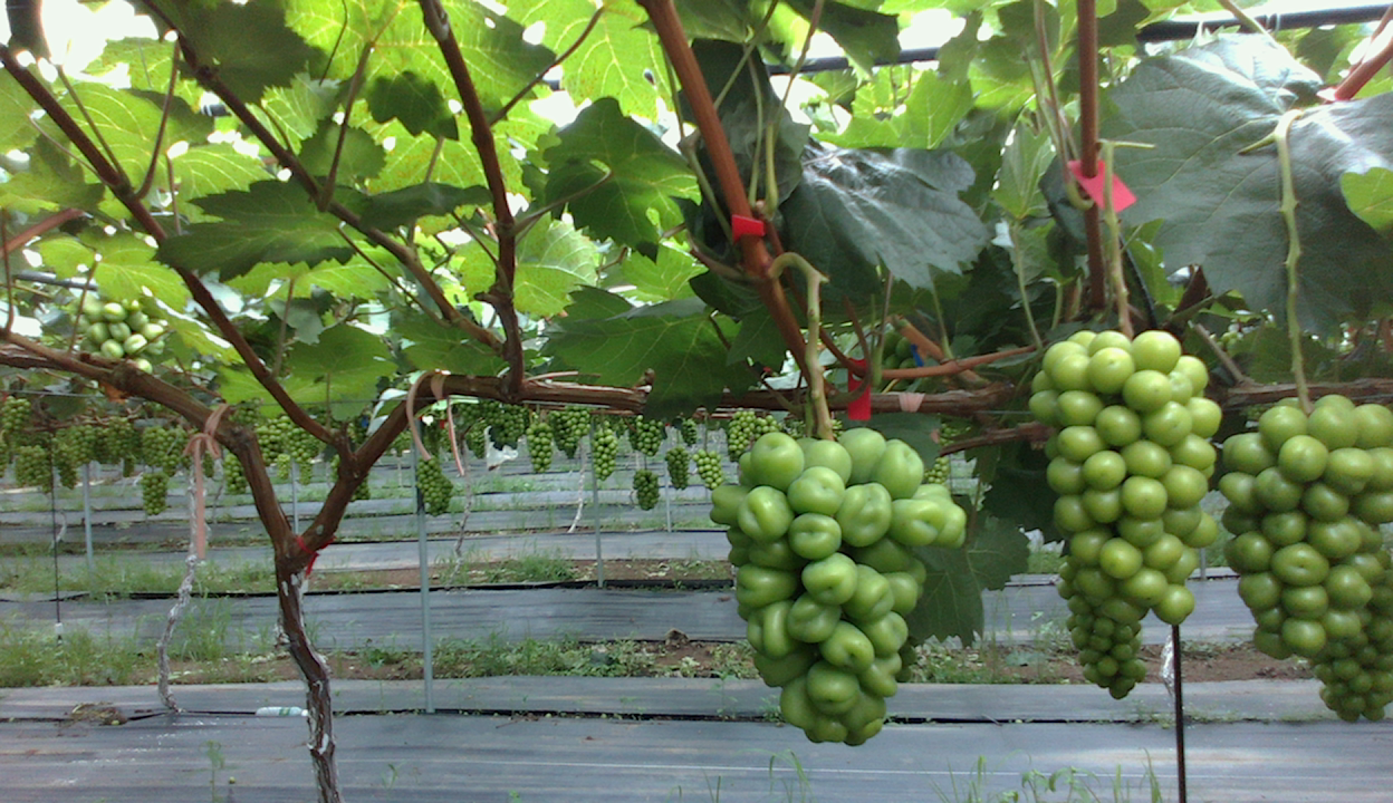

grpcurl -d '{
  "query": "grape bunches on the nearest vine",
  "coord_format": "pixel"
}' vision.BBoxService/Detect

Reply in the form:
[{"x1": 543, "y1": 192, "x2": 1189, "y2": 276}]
[
  {"x1": 1220, "y1": 396, "x2": 1392, "y2": 660},
  {"x1": 708, "y1": 428, "x2": 966, "y2": 746},
  {"x1": 1029, "y1": 330, "x2": 1223, "y2": 626}
]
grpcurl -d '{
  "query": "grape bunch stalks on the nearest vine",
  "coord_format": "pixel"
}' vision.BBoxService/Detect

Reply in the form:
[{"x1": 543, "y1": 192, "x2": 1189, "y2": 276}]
[
  {"x1": 769, "y1": 251, "x2": 834, "y2": 442},
  {"x1": 1096, "y1": 138, "x2": 1131, "y2": 340},
  {"x1": 1276, "y1": 110, "x2": 1312, "y2": 415}
]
